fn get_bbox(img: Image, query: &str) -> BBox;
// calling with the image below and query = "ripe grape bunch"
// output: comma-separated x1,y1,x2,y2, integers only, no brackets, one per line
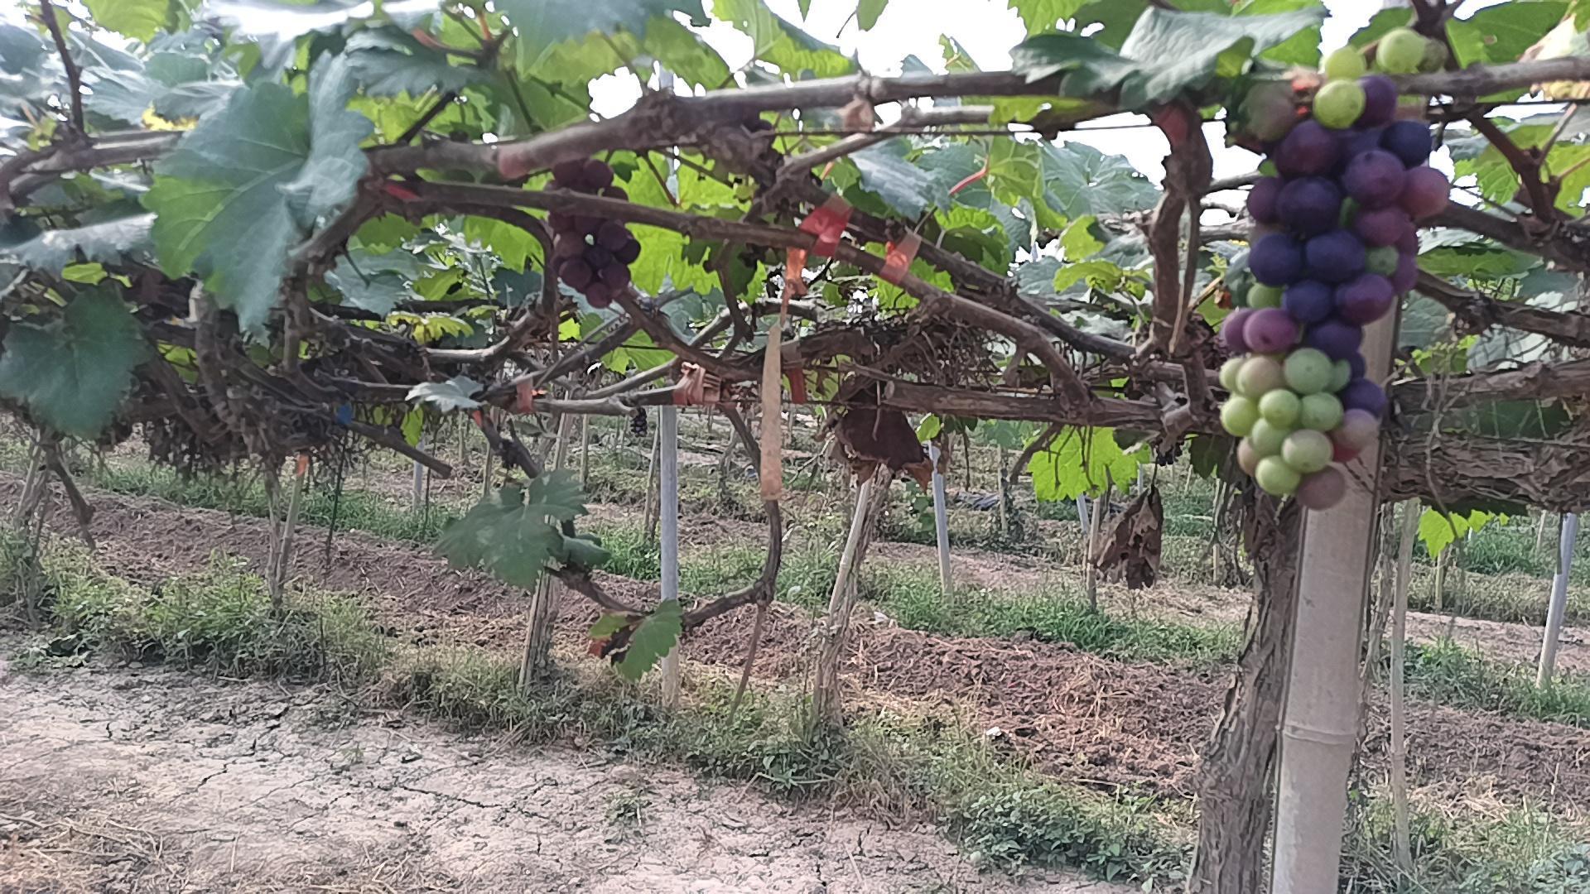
544,158,642,308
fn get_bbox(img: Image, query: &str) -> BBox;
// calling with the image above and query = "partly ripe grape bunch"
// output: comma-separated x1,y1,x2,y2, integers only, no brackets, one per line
1220,27,1449,510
